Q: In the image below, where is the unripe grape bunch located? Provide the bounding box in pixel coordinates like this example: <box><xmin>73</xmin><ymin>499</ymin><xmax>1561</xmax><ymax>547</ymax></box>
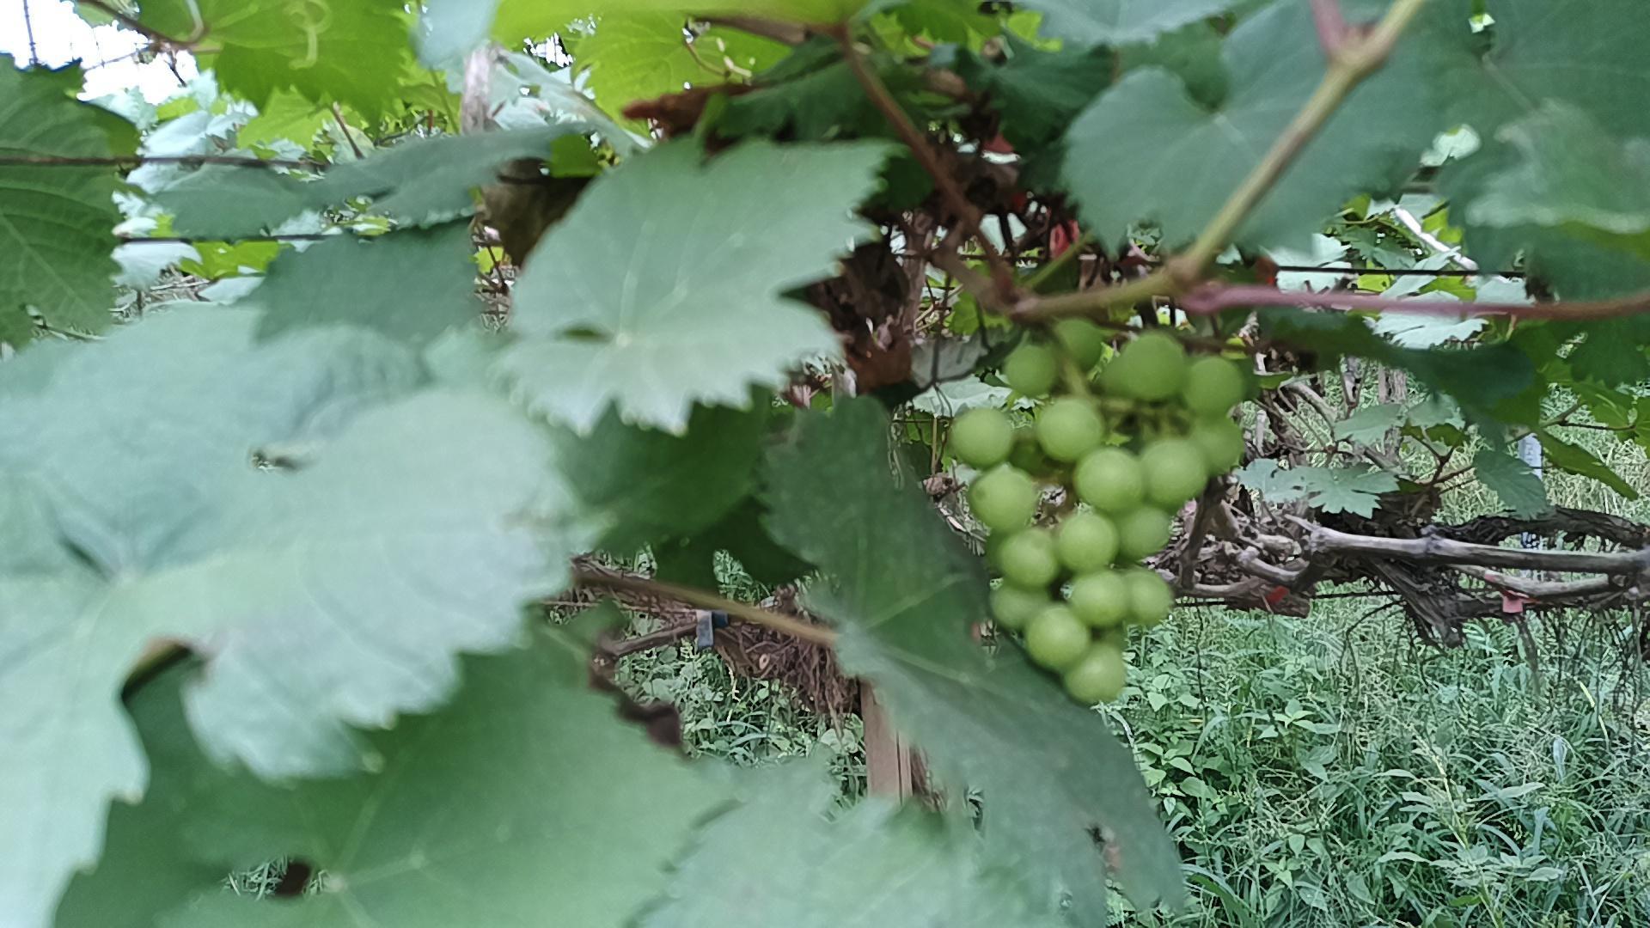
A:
<box><xmin>949</xmin><ymin>320</ymin><xmax>1246</xmax><ymax>704</ymax></box>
